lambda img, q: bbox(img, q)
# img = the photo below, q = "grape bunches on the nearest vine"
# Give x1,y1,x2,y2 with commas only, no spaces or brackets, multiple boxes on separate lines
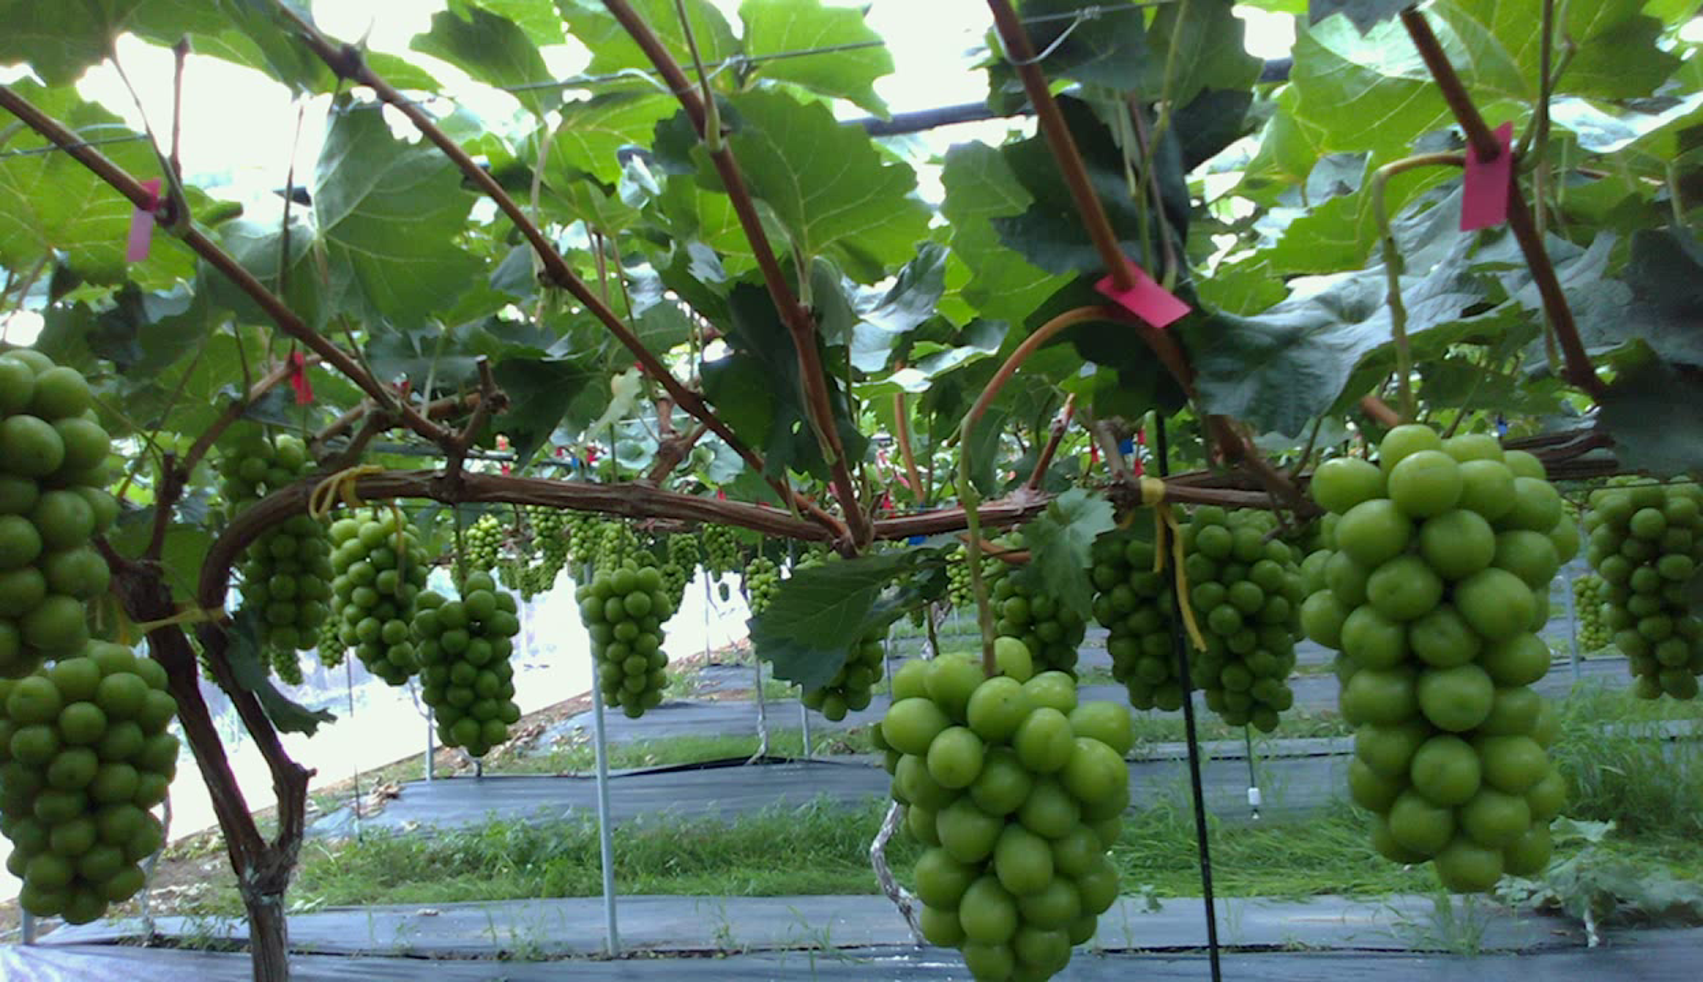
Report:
0,346,123,678
0,638,181,926
879,637,1134,979
1296,421,1583,895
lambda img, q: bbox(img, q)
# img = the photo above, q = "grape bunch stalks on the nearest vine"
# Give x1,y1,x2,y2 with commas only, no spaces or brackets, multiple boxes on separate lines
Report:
958,306,1120,676
1371,151,1463,423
